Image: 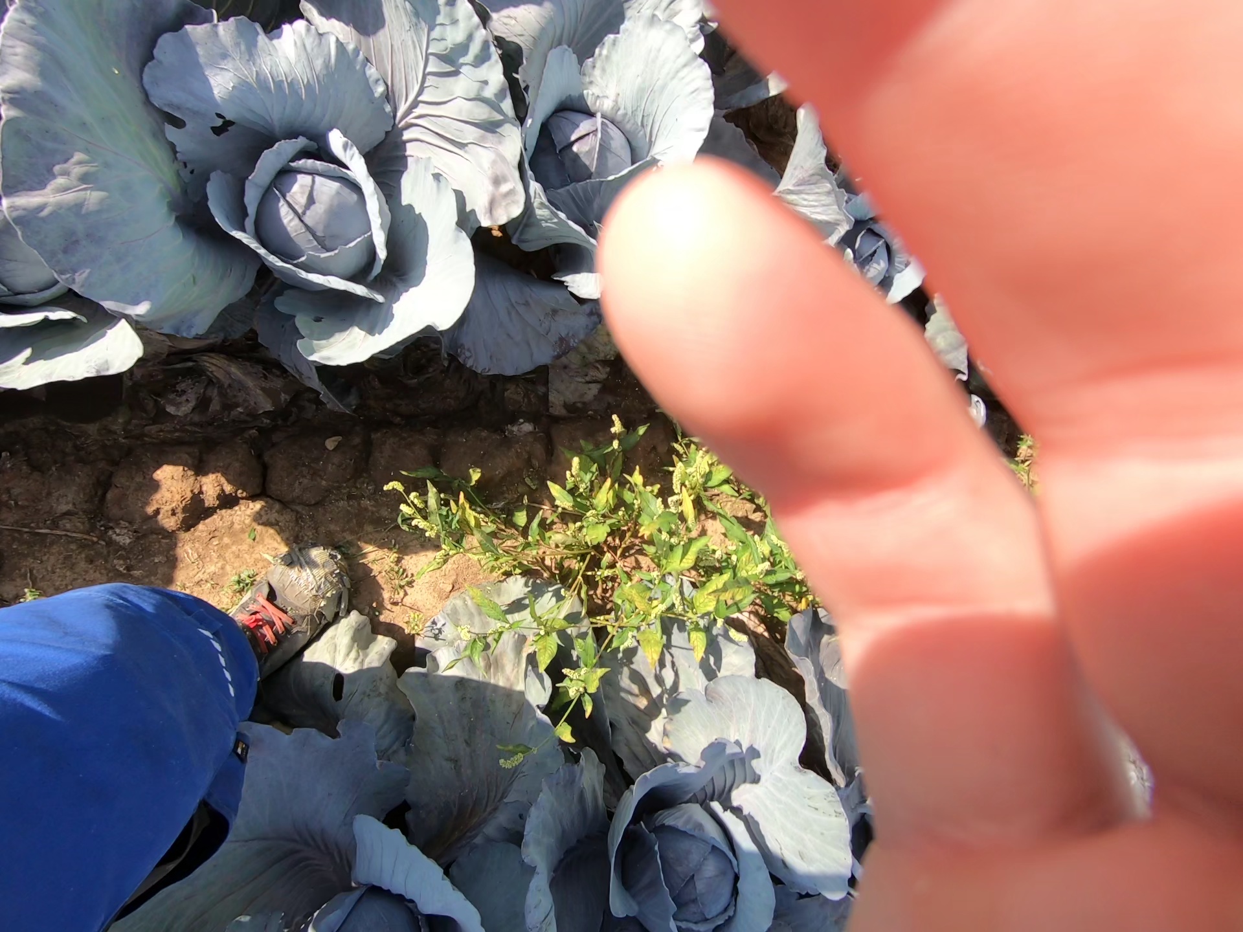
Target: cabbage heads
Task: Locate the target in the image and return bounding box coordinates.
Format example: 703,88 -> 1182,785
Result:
526,105 -> 634,227
837,225 -> 889,293
254,157 -> 383,274
629,803 -> 738,927
310,893 -> 418,931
